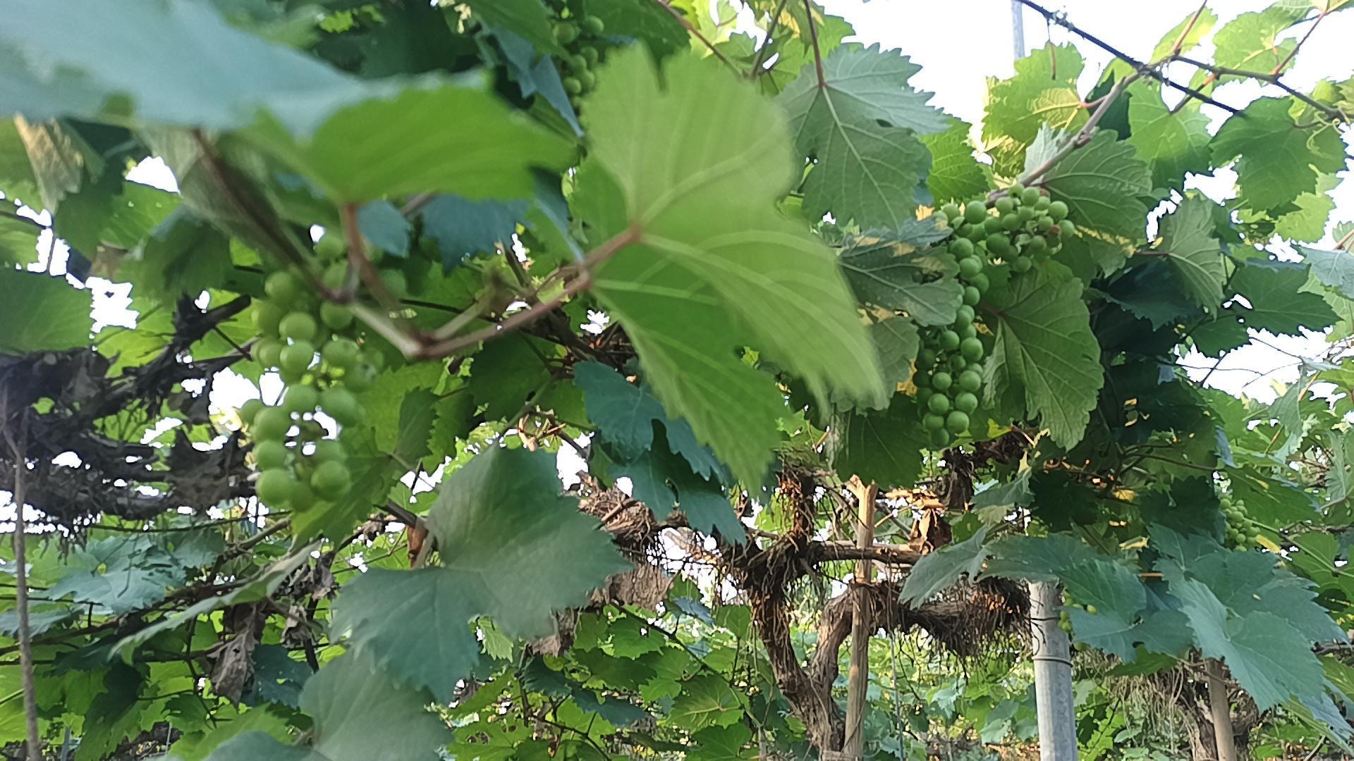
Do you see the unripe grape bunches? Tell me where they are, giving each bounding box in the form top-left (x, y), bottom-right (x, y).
top-left (917, 187), bottom-right (1073, 448)
top-left (238, 232), bottom-right (408, 510)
